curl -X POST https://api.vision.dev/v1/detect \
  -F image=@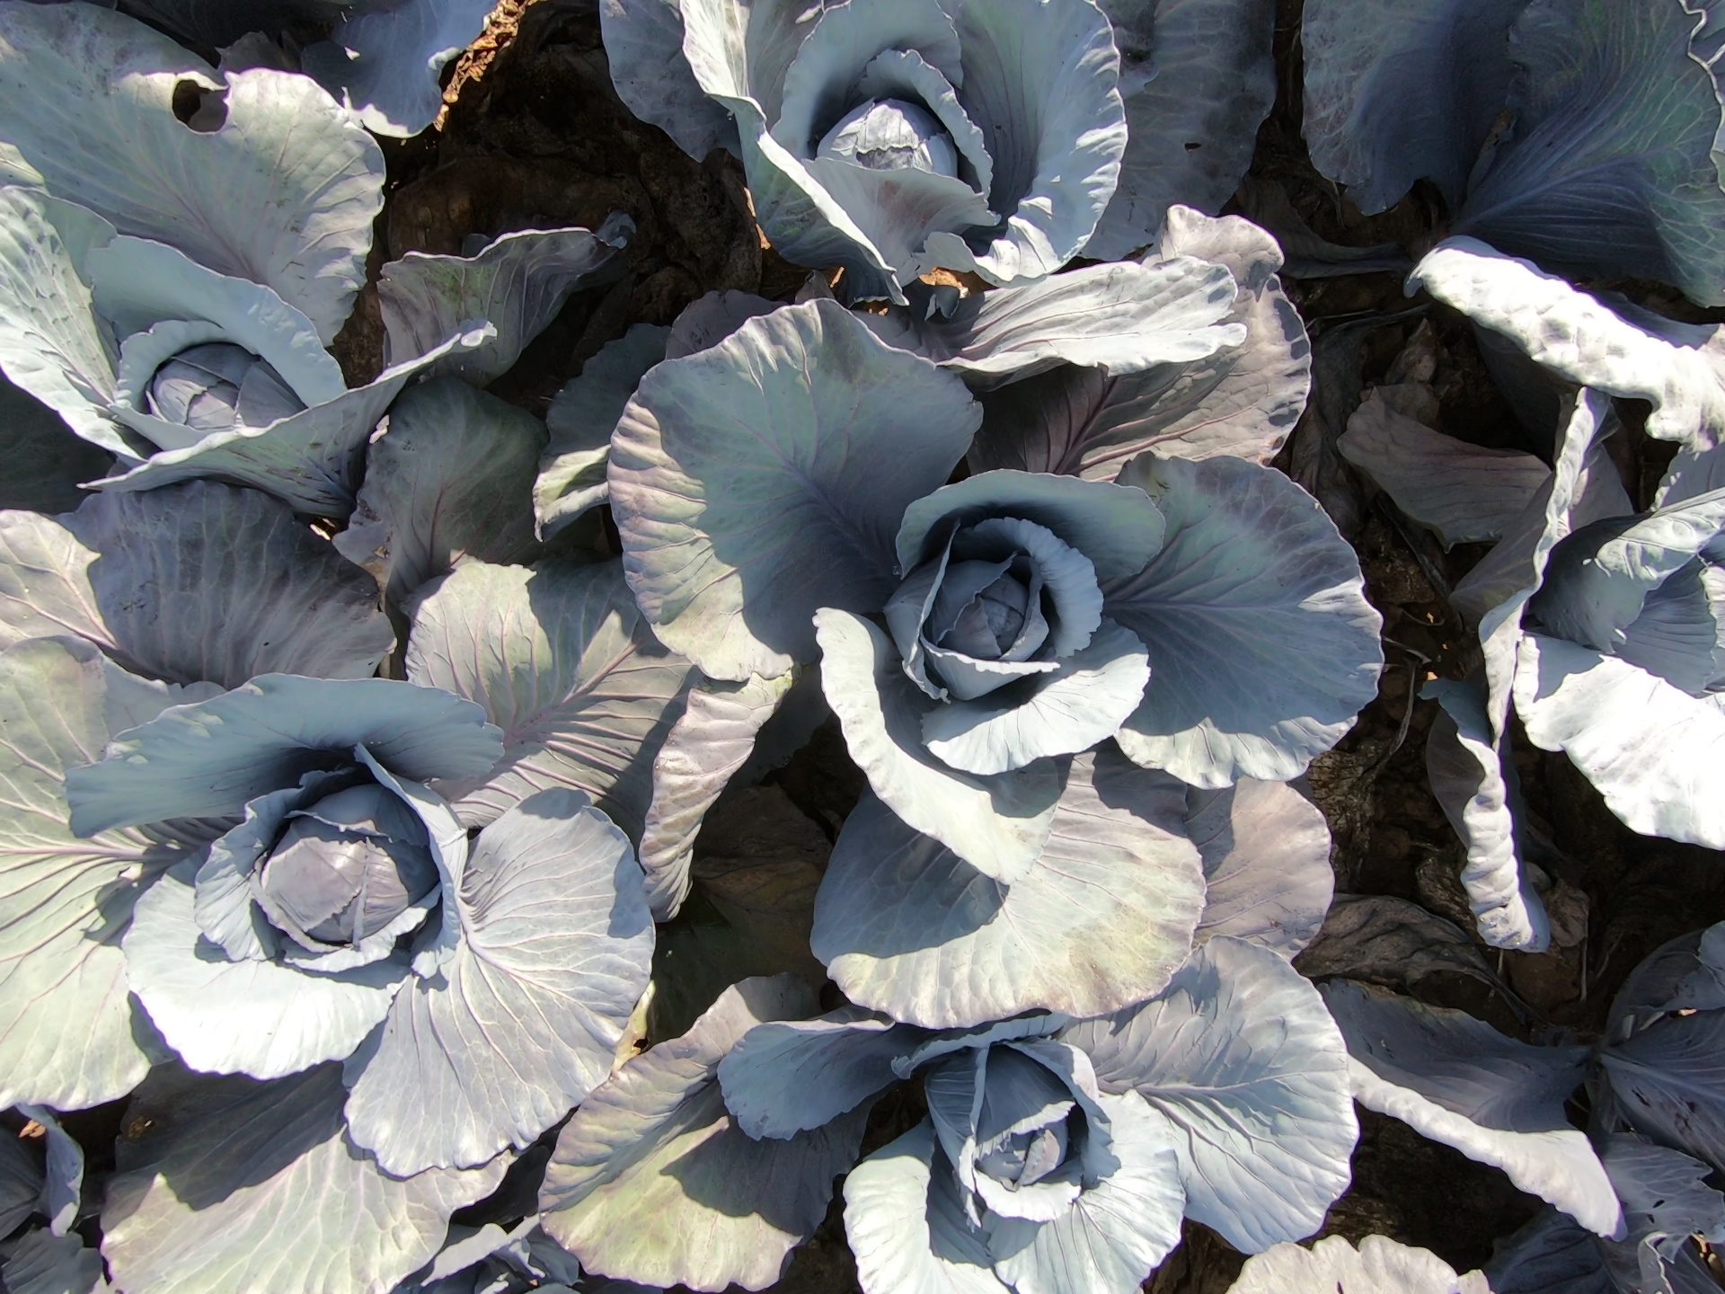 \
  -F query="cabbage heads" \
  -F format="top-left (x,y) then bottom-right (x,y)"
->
top-left (930, 572), bottom-right (1050, 688)
top-left (261, 790), bottom-right (438, 944)
top-left (142, 340), bottom-right (313, 463)
top-left (827, 99), bottom-right (951, 226)
top-left (1612, 559), bottom-right (1721, 697)
top-left (964, 1059), bottom-right (1071, 1184)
